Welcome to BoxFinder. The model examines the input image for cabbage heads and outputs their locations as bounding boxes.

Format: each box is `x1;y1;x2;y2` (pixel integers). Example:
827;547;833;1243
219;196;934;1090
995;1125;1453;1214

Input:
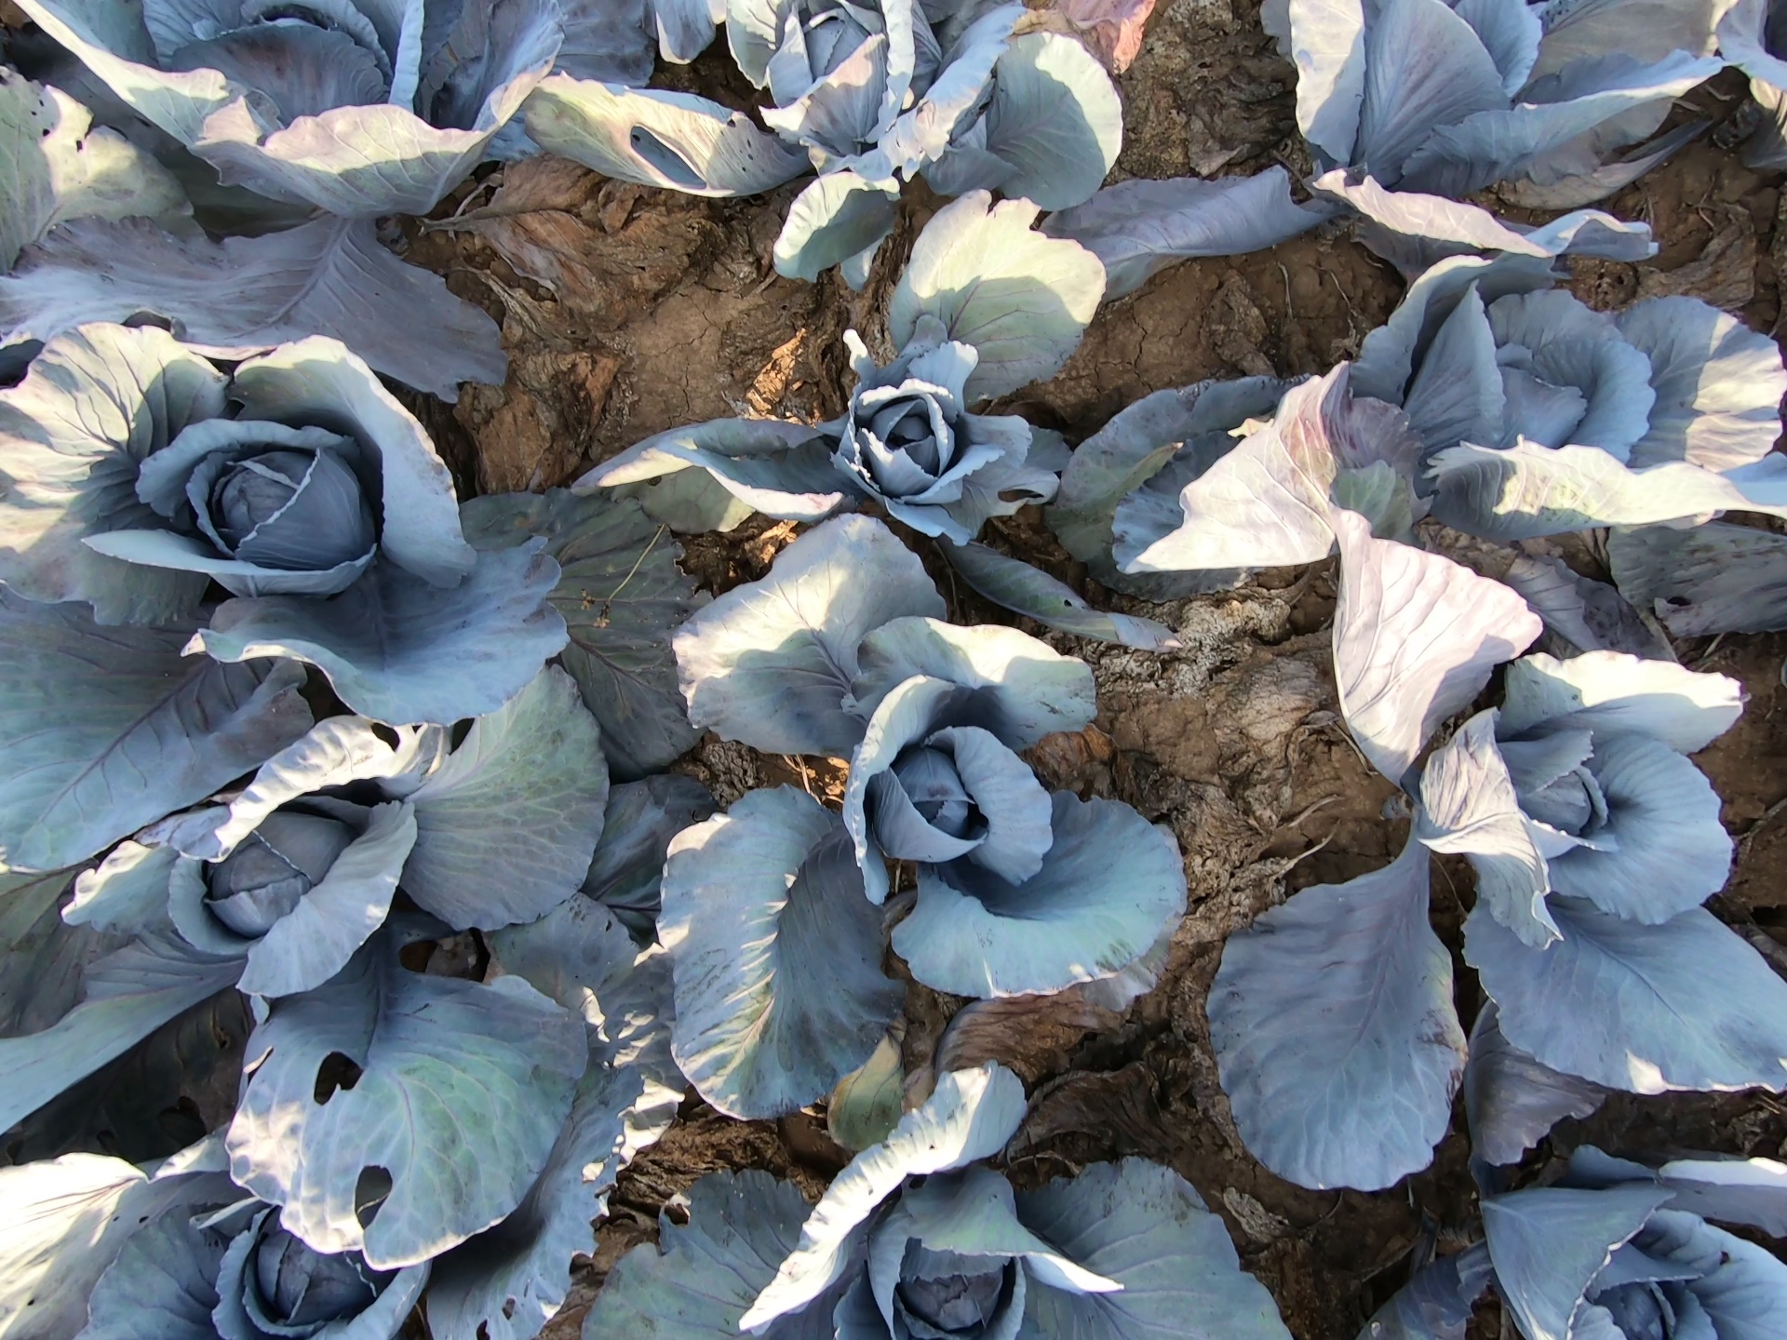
778;7;889;129
1569;1253;1672;1334
247;18;355;131
881;749;974;850
197;818;352;934
262;1176;405;1318
217;452;349;556
884;415;943;476
893;1221;1003;1333
1485;752;1592;839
